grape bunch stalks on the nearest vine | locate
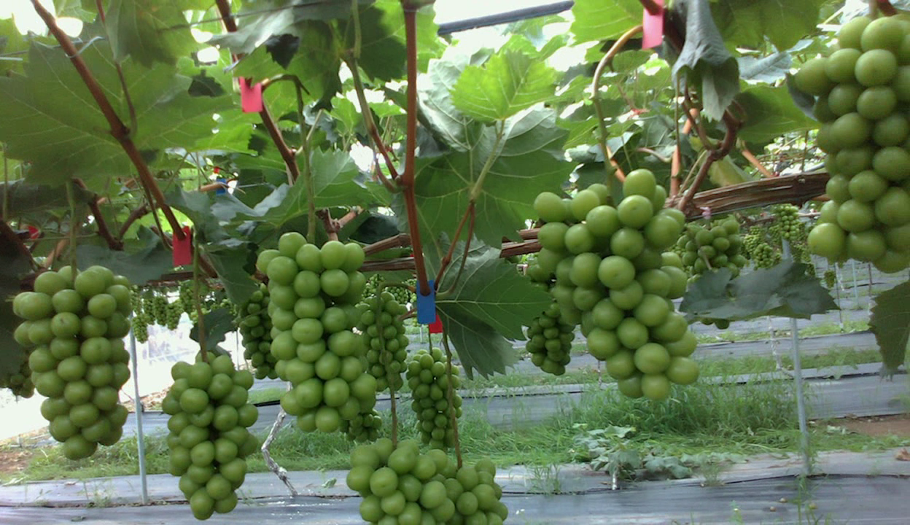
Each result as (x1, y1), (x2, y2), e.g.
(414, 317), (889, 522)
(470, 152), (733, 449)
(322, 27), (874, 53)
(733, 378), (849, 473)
(377, 281), (415, 446)
(443, 331), (462, 468)
(868, 1), (878, 17)
(192, 245), (207, 360)
(588, 28), (639, 205)
(261, 74), (315, 242)
(67, 182), (78, 280)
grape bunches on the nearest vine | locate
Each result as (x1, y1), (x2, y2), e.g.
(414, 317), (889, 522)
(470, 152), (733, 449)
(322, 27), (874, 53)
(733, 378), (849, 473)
(346, 437), (454, 524)
(534, 168), (698, 401)
(14, 265), (131, 461)
(796, 15), (909, 275)
(256, 231), (377, 434)
(162, 353), (257, 521)
(437, 458), (508, 524)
